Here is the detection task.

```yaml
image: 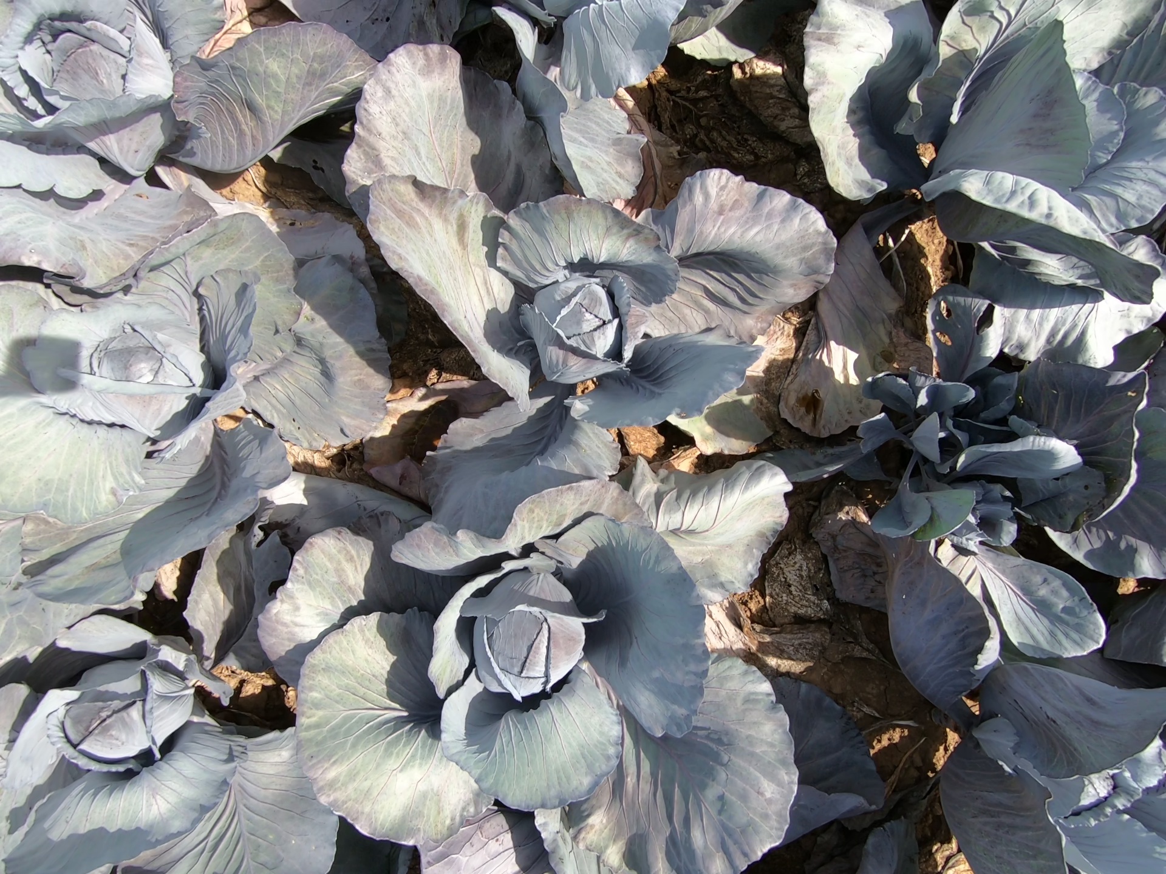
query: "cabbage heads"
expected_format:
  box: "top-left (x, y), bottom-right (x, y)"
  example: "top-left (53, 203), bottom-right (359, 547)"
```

top-left (472, 572), bottom-right (583, 694)
top-left (990, 722), bottom-right (1115, 819)
top-left (64, 662), bottom-right (182, 762)
top-left (536, 281), bottom-right (624, 368)
top-left (92, 332), bottom-right (208, 424)
top-left (50, 21), bottom-right (155, 135)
